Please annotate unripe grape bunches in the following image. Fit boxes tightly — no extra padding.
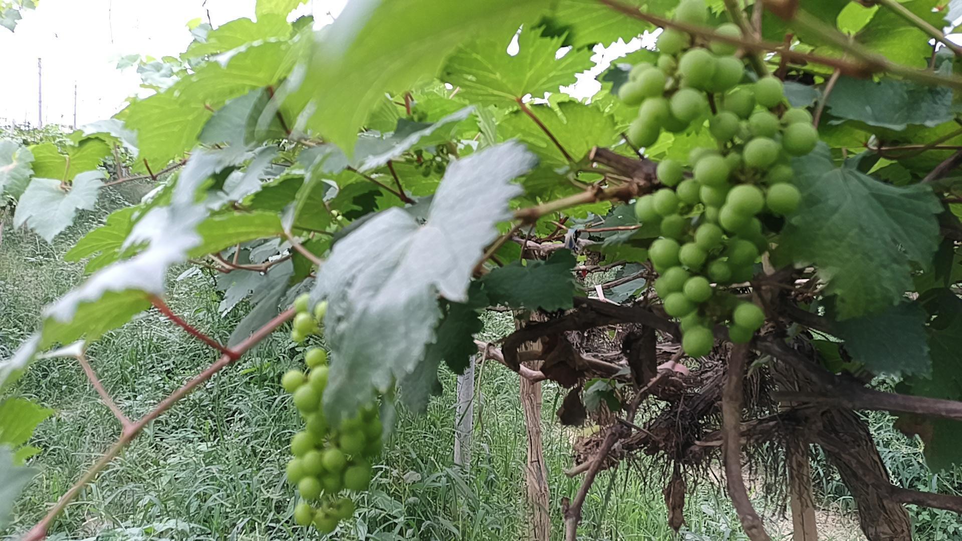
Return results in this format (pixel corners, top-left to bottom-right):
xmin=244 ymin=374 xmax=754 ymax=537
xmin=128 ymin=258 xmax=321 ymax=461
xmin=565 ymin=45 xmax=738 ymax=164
xmin=282 ymin=347 xmax=383 ymax=532
xmin=618 ymin=28 xmax=817 ymax=356
xmin=291 ymin=293 xmax=328 ymax=345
